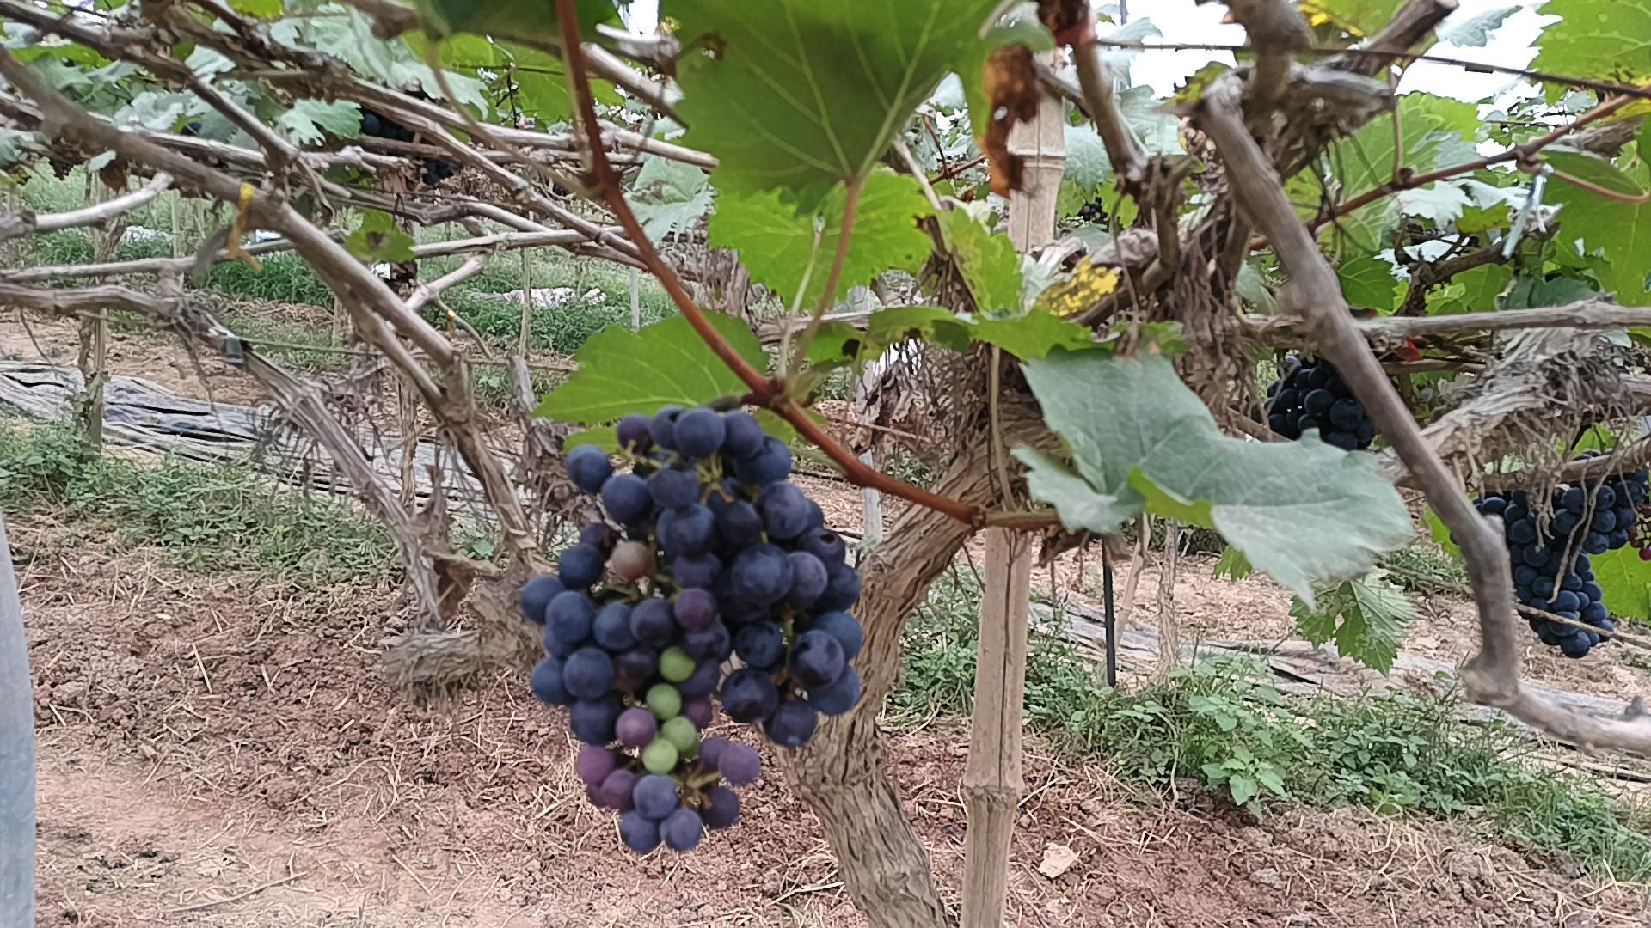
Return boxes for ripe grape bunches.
[1264,356,1376,449]
[1475,469,1650,657]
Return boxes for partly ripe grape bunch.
[521,399,862,852]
